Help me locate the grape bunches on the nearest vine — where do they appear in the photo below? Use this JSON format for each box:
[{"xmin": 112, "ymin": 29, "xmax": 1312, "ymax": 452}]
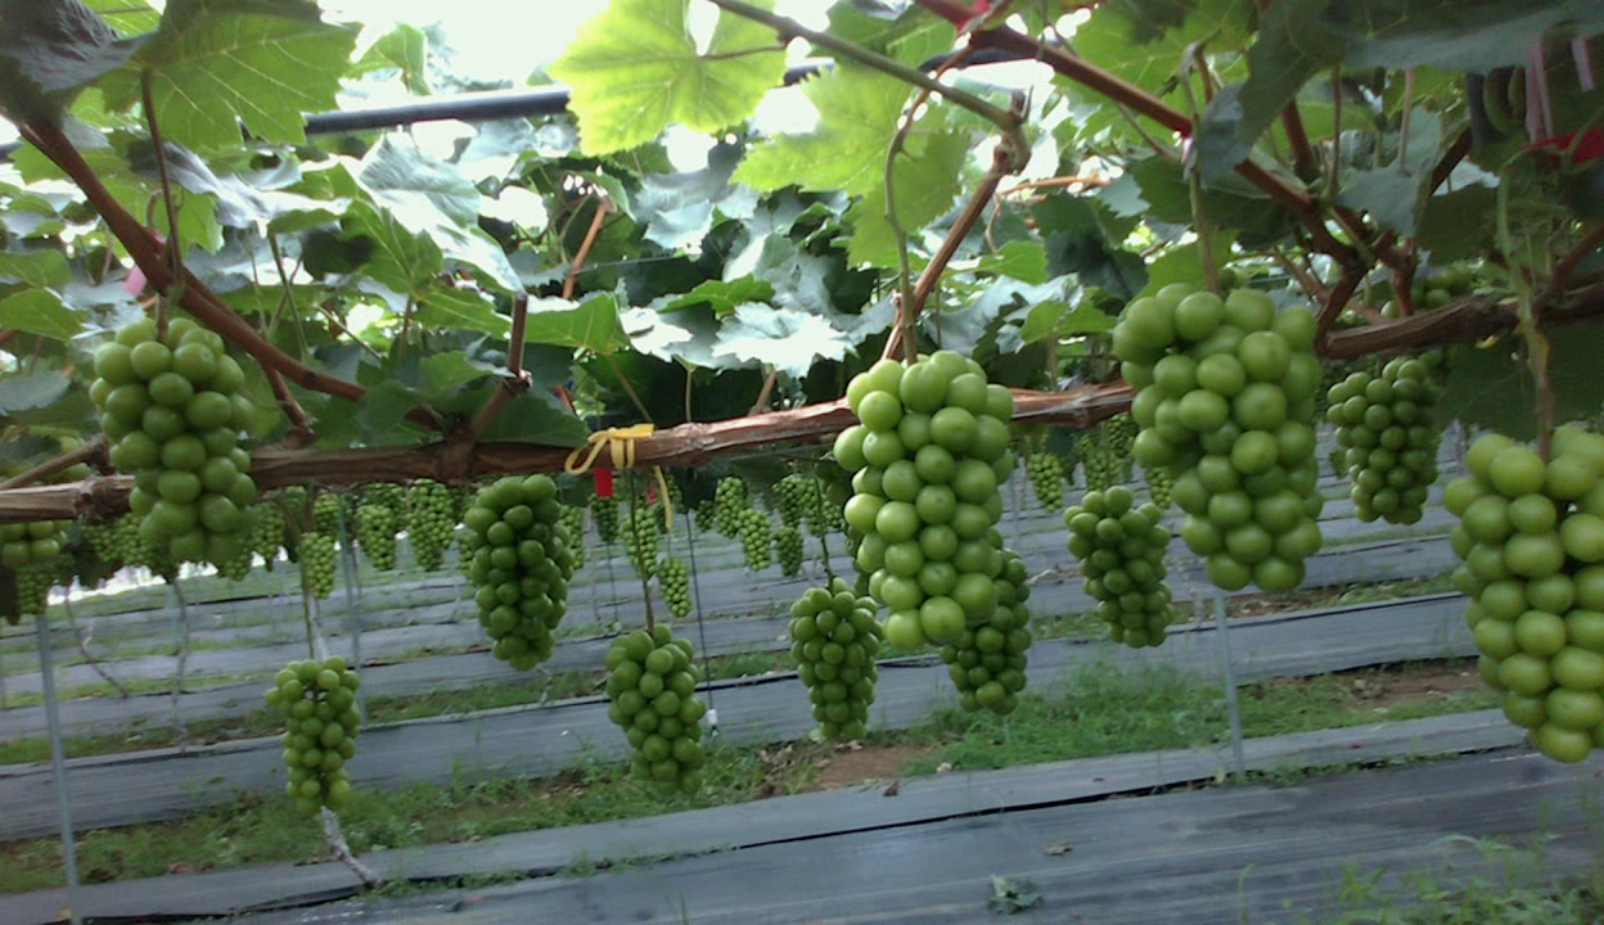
[
  {"xmin": 1110, "ymin": 284, "xmax": 1325, "ymax": 594},
  {"xmin": 1445, "ymin": 425, "xmax": 1603, "ymax": 763},
  {"xmin": 90, "ymin": 319, "xmax": 257, "ymax": 567},
  {"xmin": 834, "ymin": 351, "xmax": 1017, "ymax": 647}
]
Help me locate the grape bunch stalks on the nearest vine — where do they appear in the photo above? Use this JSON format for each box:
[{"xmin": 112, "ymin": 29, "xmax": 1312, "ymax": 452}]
[
  {"xmin": 883, "ymin": 40, "xmax": 990, "ymax": 370},
  {"xmin": 1190, "ymin": 137, "xmax": 1225, "ymax": 297},
  {"xmin": 1493, "ymin": 150, "xmax": 1565, "ymax": 464},
  {"xmin": 141, "ymin": 76, "xmax": 185, "ymax": 344}
]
